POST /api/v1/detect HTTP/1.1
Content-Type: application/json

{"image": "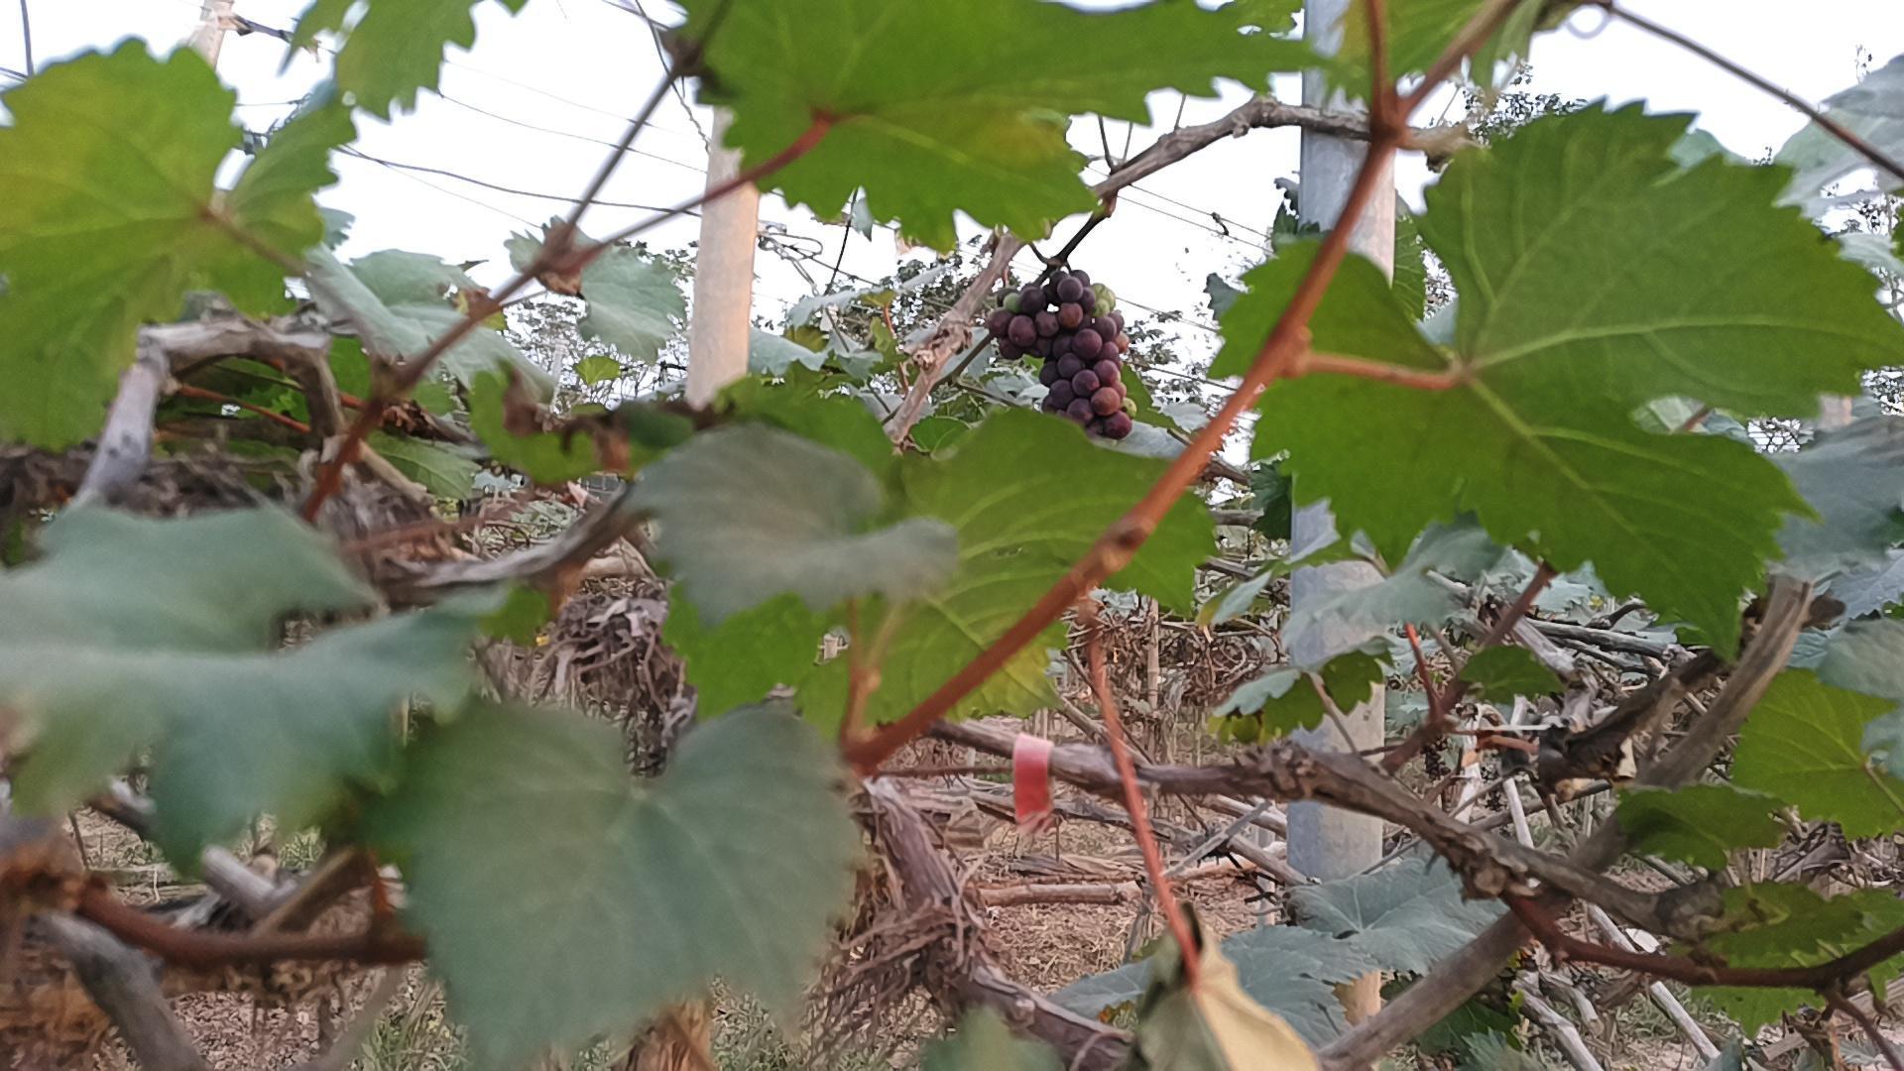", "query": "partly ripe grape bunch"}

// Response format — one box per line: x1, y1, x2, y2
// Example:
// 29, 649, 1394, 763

985, 267, 1130, 439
